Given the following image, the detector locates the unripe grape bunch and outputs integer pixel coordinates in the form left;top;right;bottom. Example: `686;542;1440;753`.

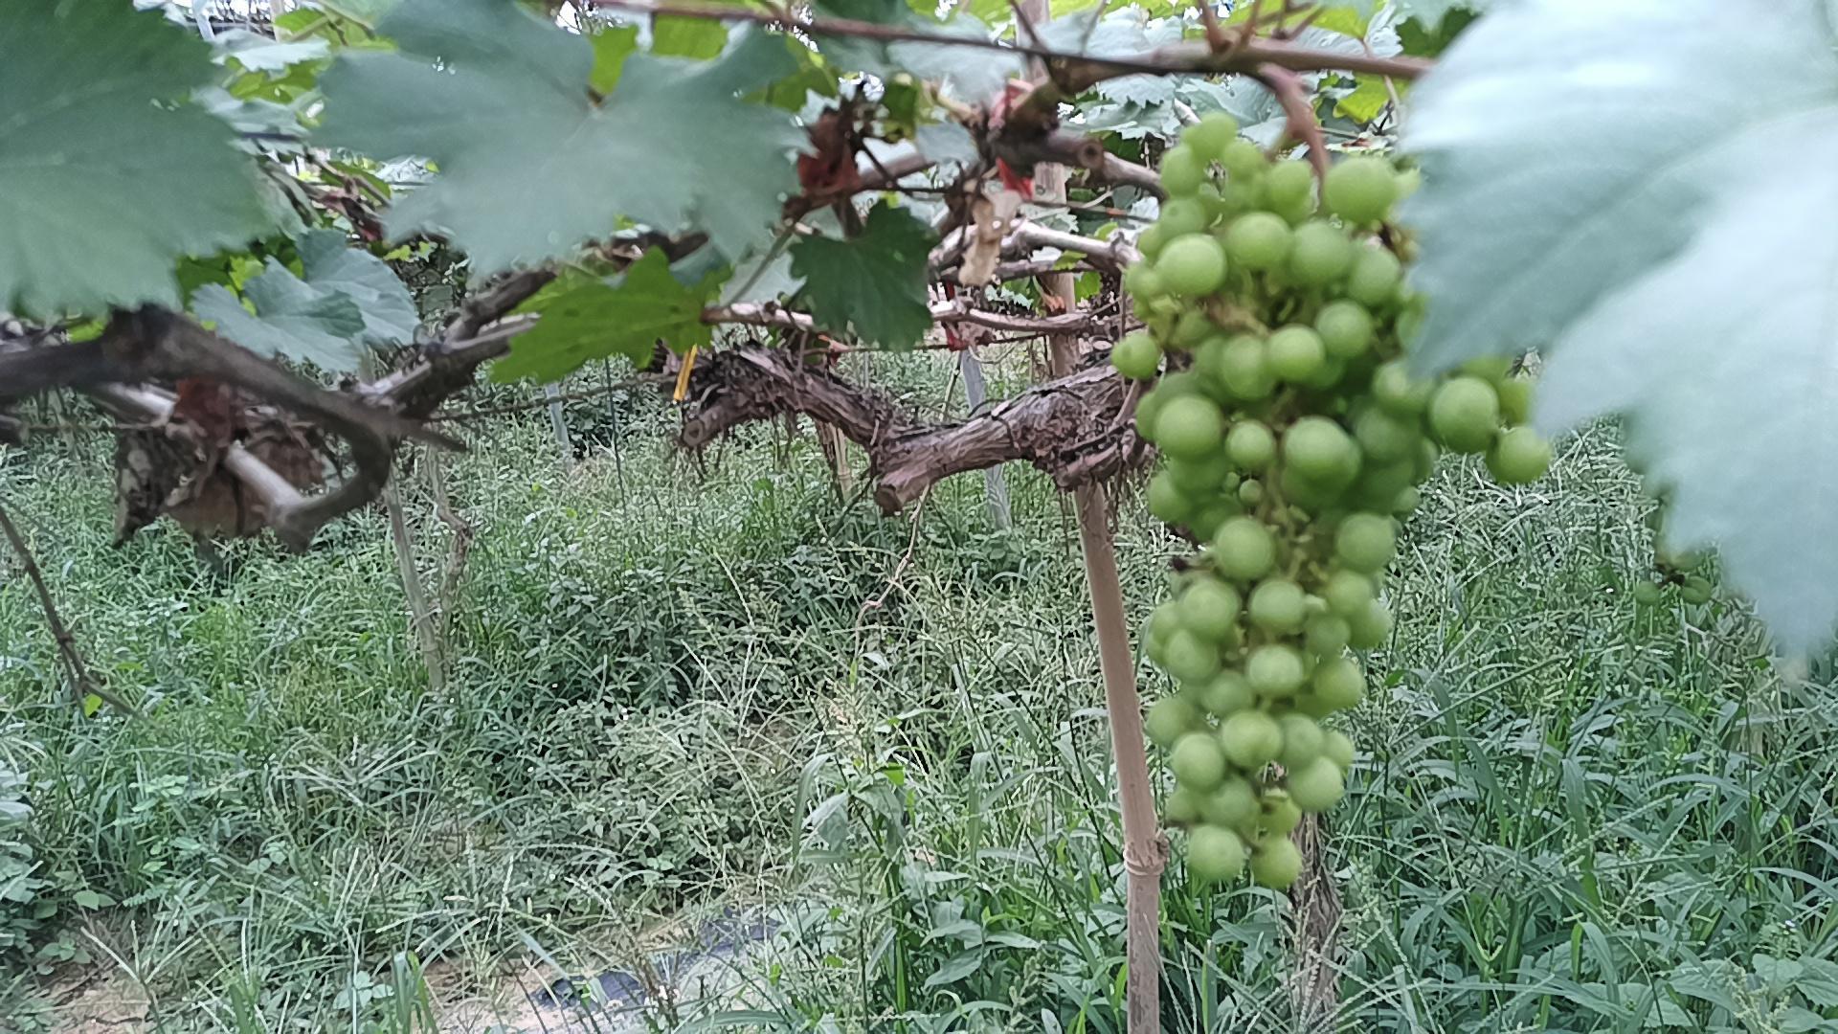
1113;114;1549;889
